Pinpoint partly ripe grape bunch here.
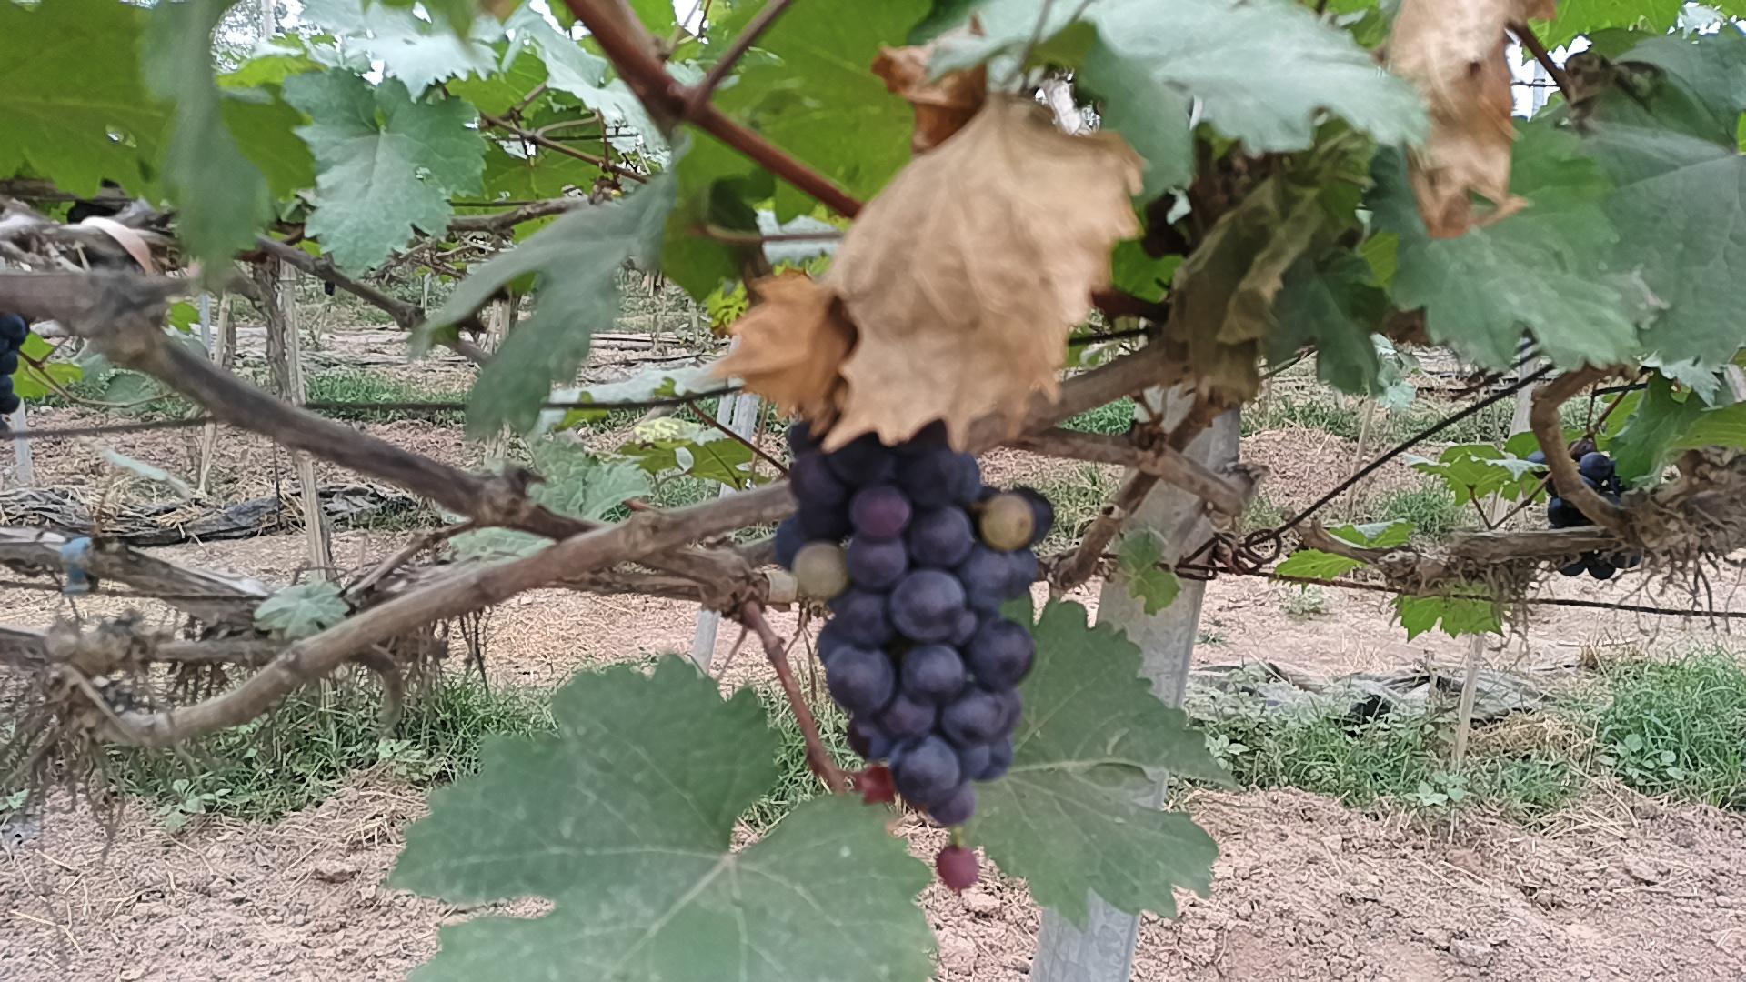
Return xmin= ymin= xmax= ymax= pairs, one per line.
xmin=775 ymin=421 xmax=1053 ymax=831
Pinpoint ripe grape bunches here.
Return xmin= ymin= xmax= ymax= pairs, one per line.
xmin=0 ymin=310 xmax=30 ymax=438
xmin=1540 ymin=437 xmax=1643 ymax=583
